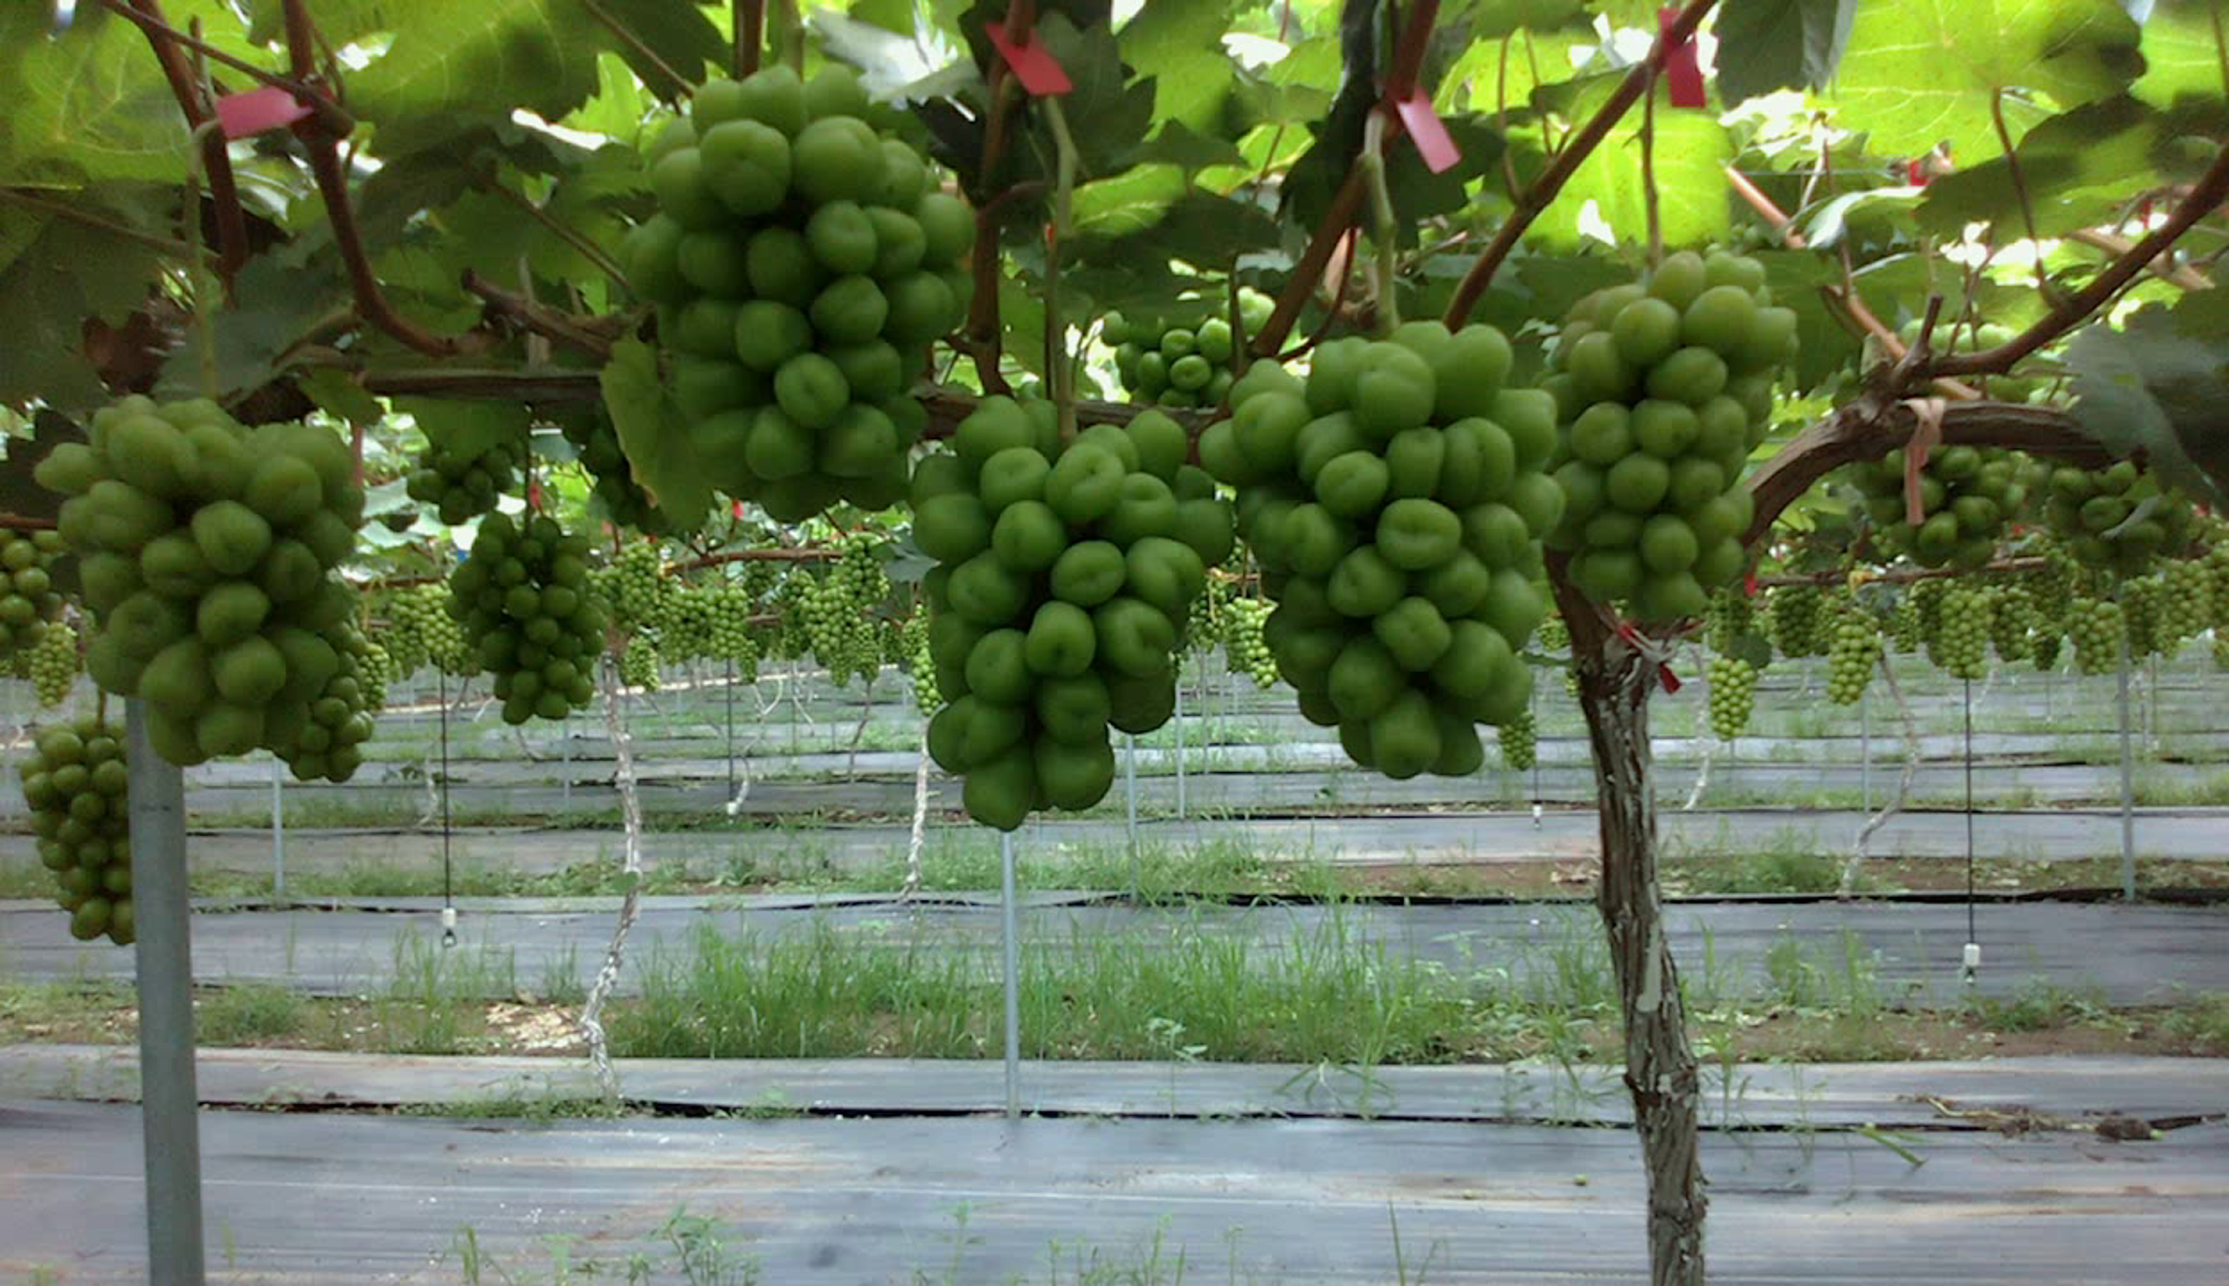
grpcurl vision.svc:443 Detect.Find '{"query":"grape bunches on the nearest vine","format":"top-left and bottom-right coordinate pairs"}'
top-left (1195, 321), bottom-right (1566, 781)
top-left (32, 397), bottom-right (366, 766)
top-left (1532, 248), bottom-right (1802, 623)
top-left (623, 61), bottom-right (975, 523)
top-left (906, 395), bottom-right (1234, 832)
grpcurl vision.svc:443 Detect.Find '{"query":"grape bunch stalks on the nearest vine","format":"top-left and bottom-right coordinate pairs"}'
top-left (1027, 95), bottom-right (1081, 461)
top-left (781, 0), bottom-right (804, 82)
top-left (1643, 52), bottom-right (1661, 279)
top-left (184, 118), bottom-right (221, 402)
top-left (1365, 105), bottom-right (1400, 341)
